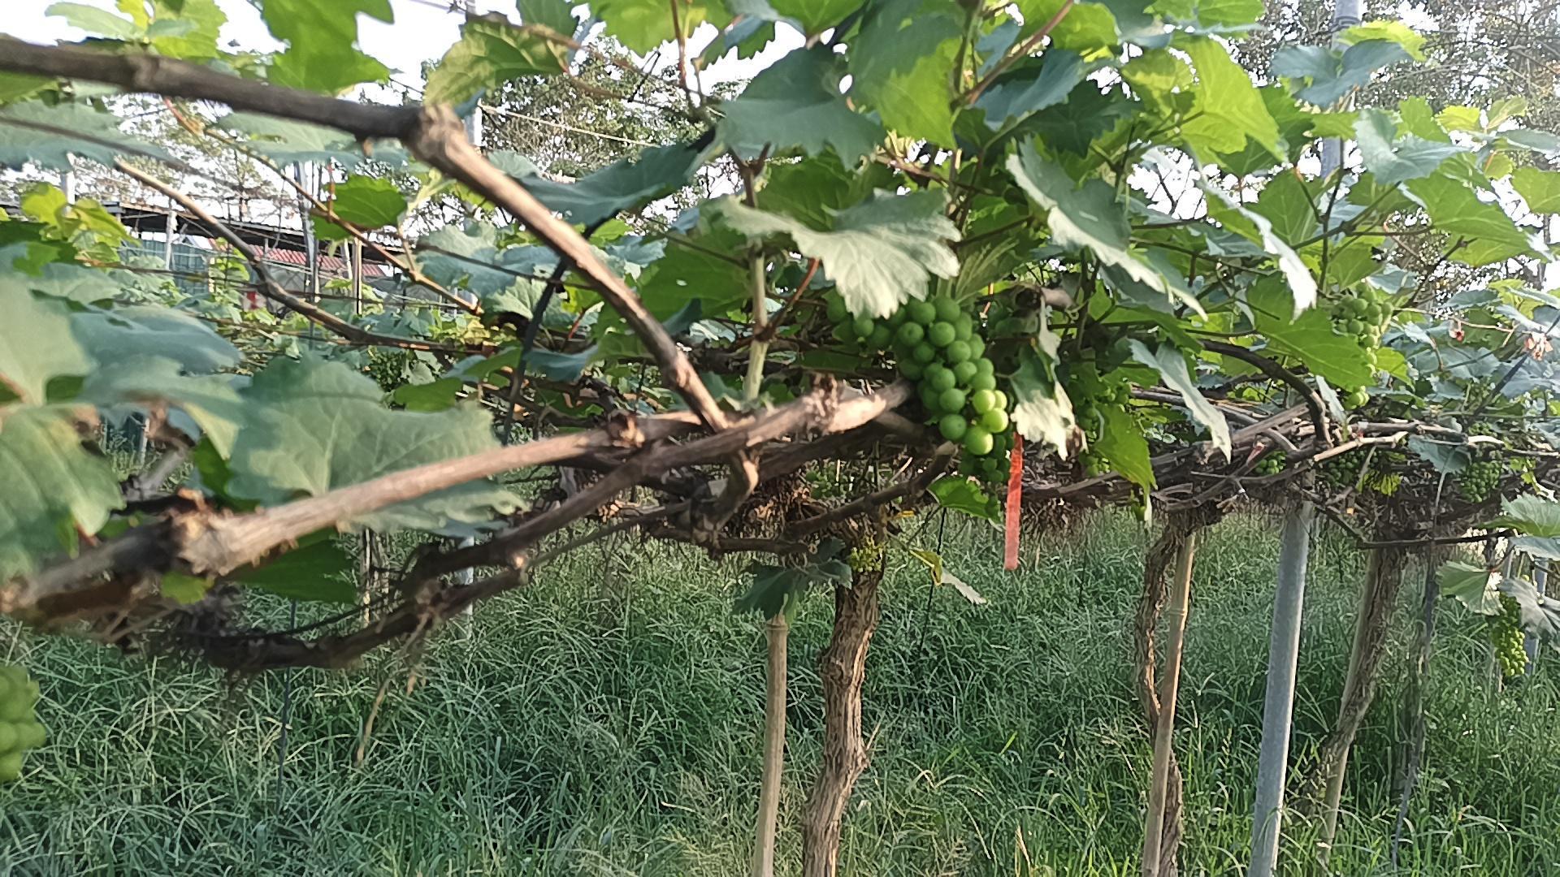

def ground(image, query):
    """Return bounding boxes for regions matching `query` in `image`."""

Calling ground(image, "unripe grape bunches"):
[1486,586,1529,683]
[826,295,1010,456]
[1252,450,1286,476]
[958,421,1018,485]
[1328,285,1392,412]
